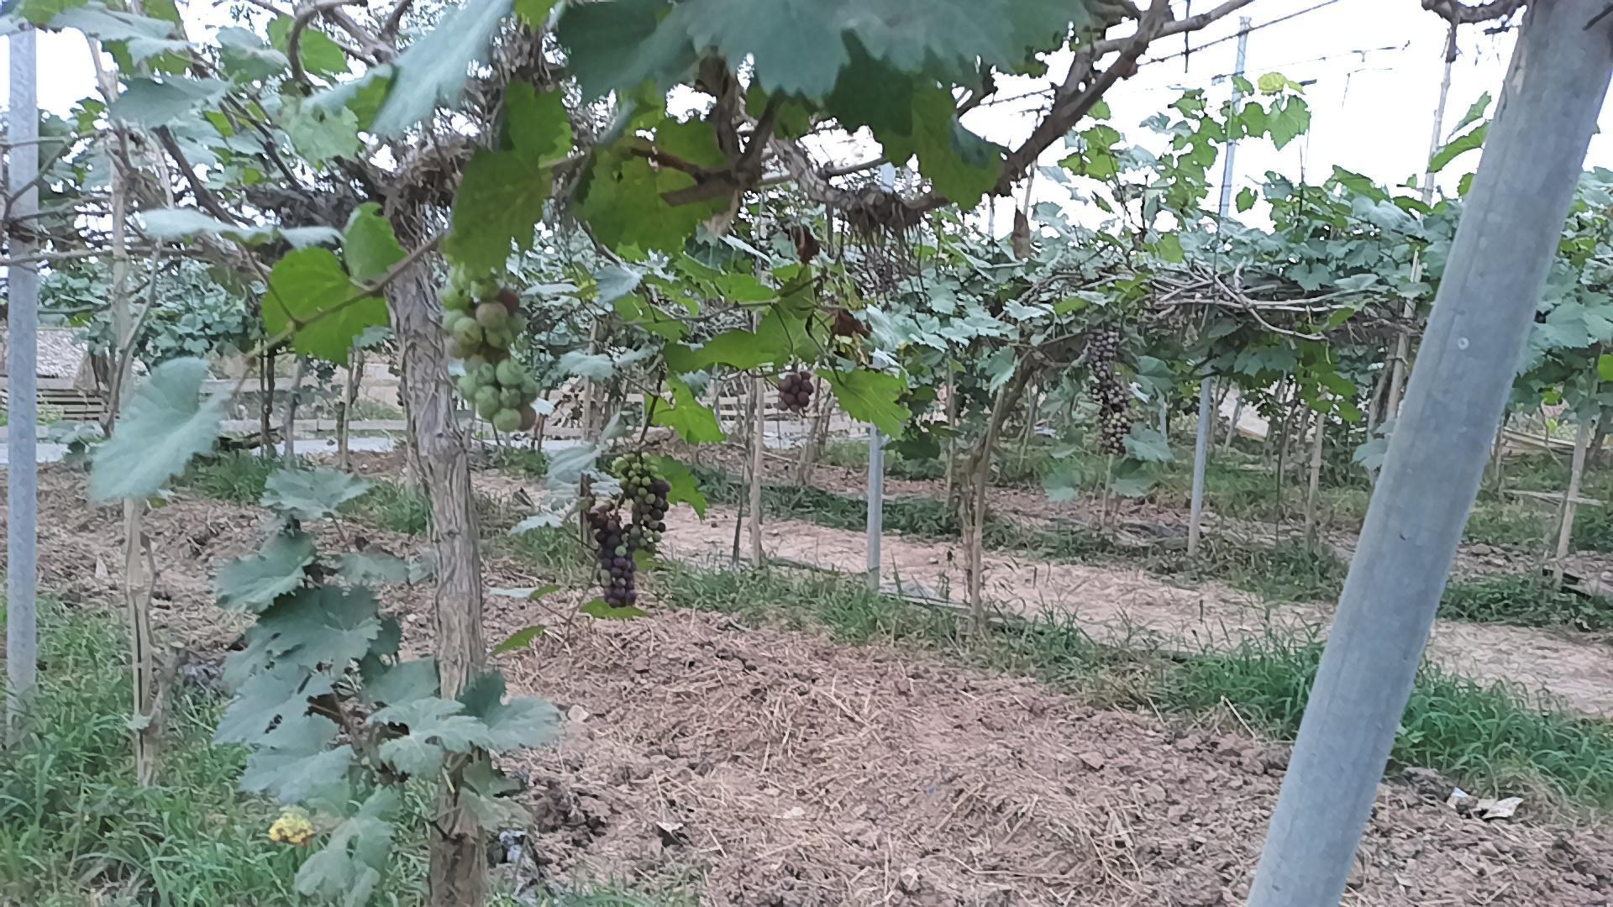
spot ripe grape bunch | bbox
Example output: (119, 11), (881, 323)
(776, 371), (814, 412)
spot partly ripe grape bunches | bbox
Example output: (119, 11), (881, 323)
(586, 504), (636, 608)
(1085, 322), (1120, 378)
(1088, 372), (1131, 454)
(612, 453), (670, 552)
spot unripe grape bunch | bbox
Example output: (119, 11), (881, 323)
(442, 265), (539, 432)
